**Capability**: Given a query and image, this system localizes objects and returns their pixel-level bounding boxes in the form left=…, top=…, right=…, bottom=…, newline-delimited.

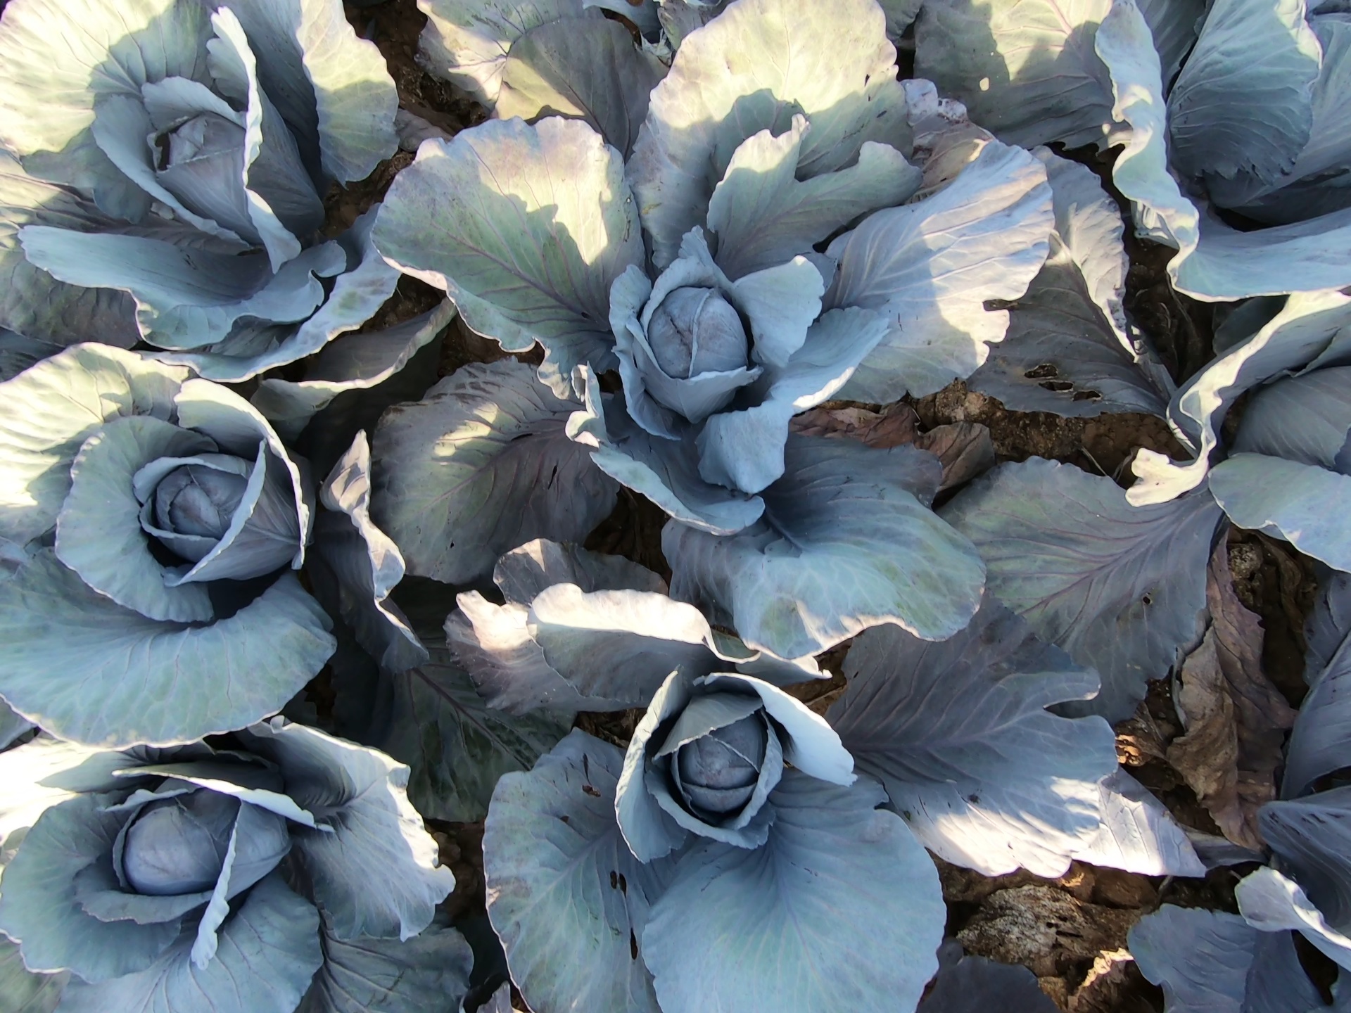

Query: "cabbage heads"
left=122, top=770, right=265, bottom=899
left=1240, top=11, right=1347, bottom=164
left=642, top=283, right=747, bottom=406
left=160, top=107, right=293, bottom=233
left=155, top=461, right=279, bottom=564
left=677, top=703, right=779, bottom=810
